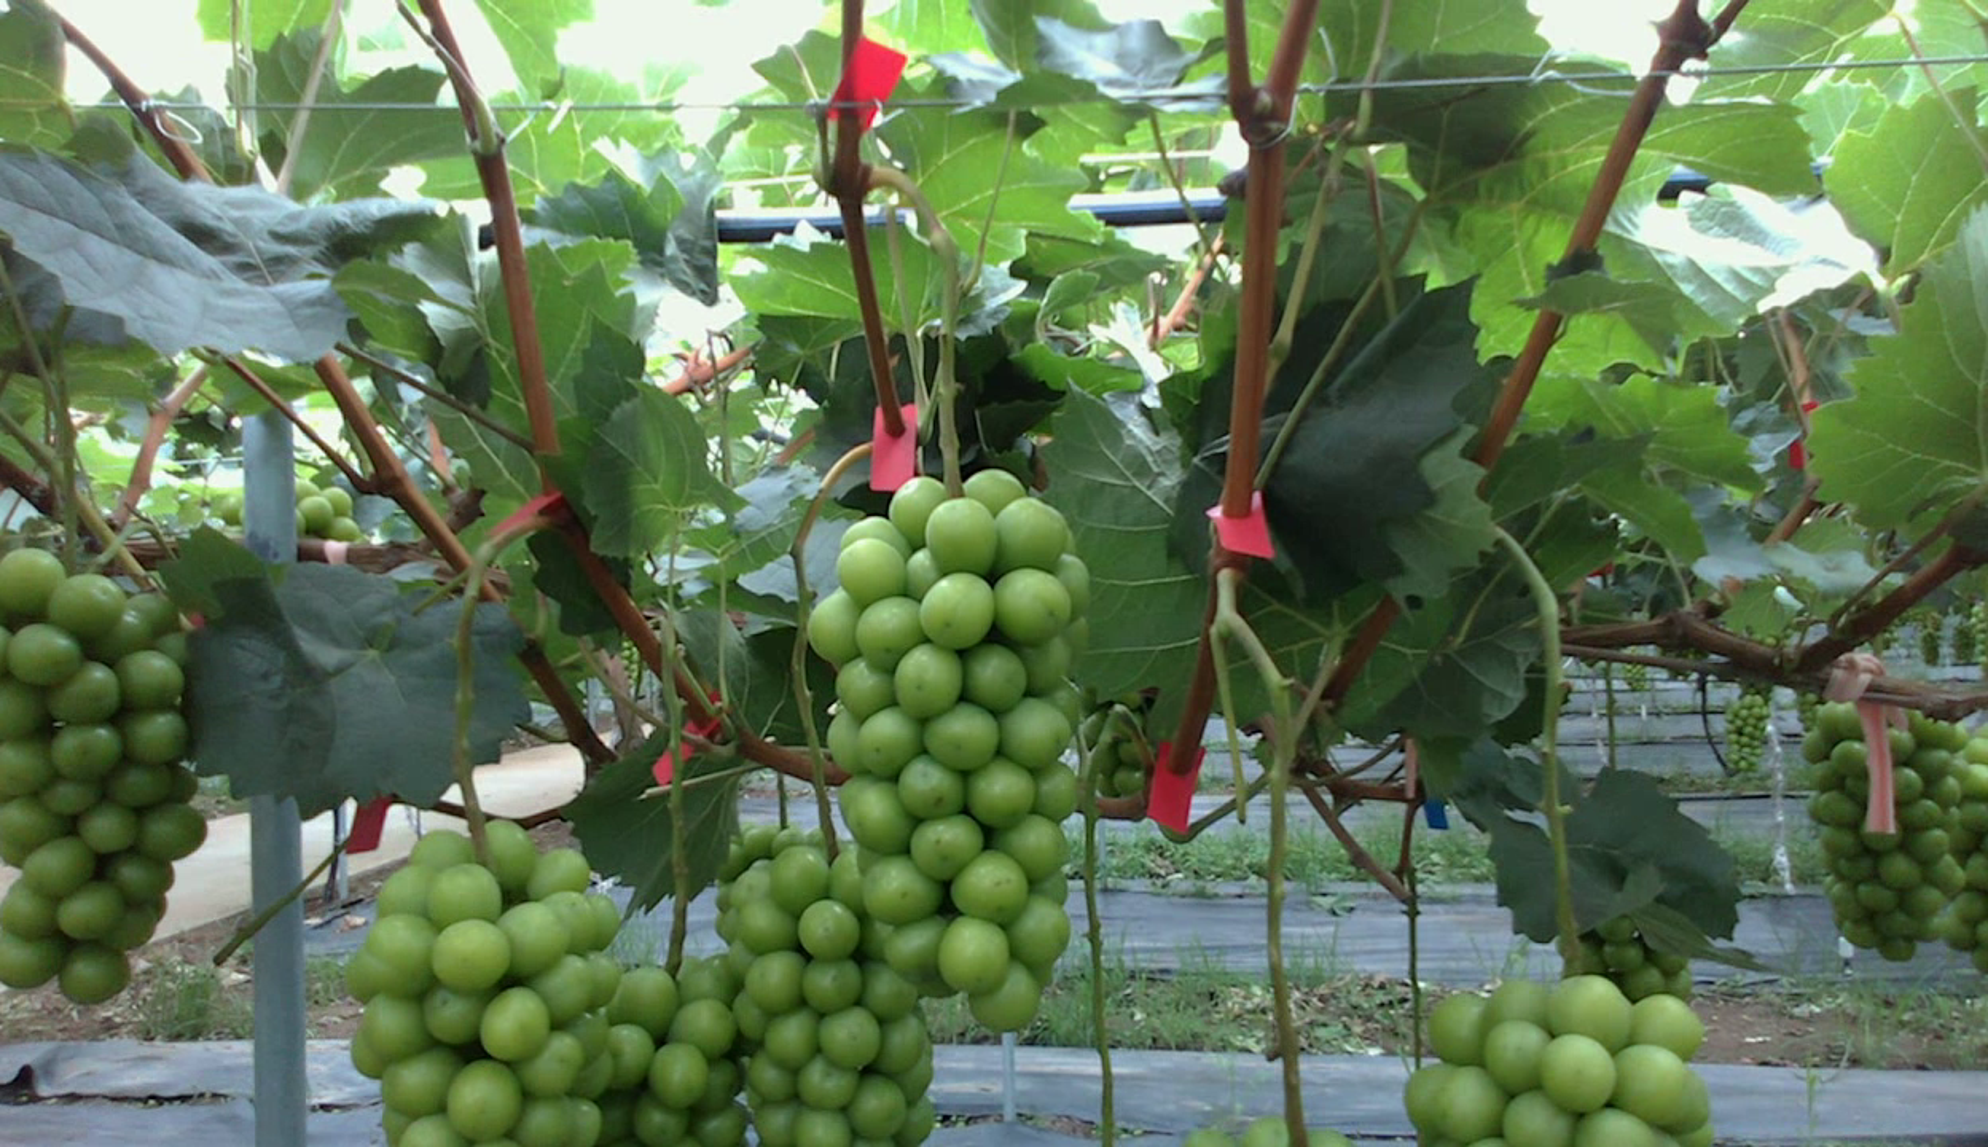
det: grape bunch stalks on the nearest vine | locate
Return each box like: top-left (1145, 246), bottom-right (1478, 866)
top-left (659, 615), bottom-right (688, 978)
top-left (1215, 570), bottom-right (1306, 1145)
top-left (789, 438), bottom-right (871, 867)
top-left (1497, 527), bottom-right (1582, 980)
top-left (452, 511), bottom-right (562, 883)
top-left (868, 164), bottom-right (964, 502)
top-left (49, 299), bottom-right (76, 578)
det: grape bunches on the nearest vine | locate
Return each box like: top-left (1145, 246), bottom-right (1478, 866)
top-left (1403, 975), bottom-right (1716, 1145)
top-left (809, 468), bottom-right (1088, 1032)
top-left (597, 954), bottom-right (749, 1145)
top-left (2, 548), bottom-right (205, 1002)
top-left (1184, 1117), bottom-right (1352, 1145)
top-left (715, 840), bottom-right (933, 1145)
top-left (341, 817), bottom-right (620, 1145)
